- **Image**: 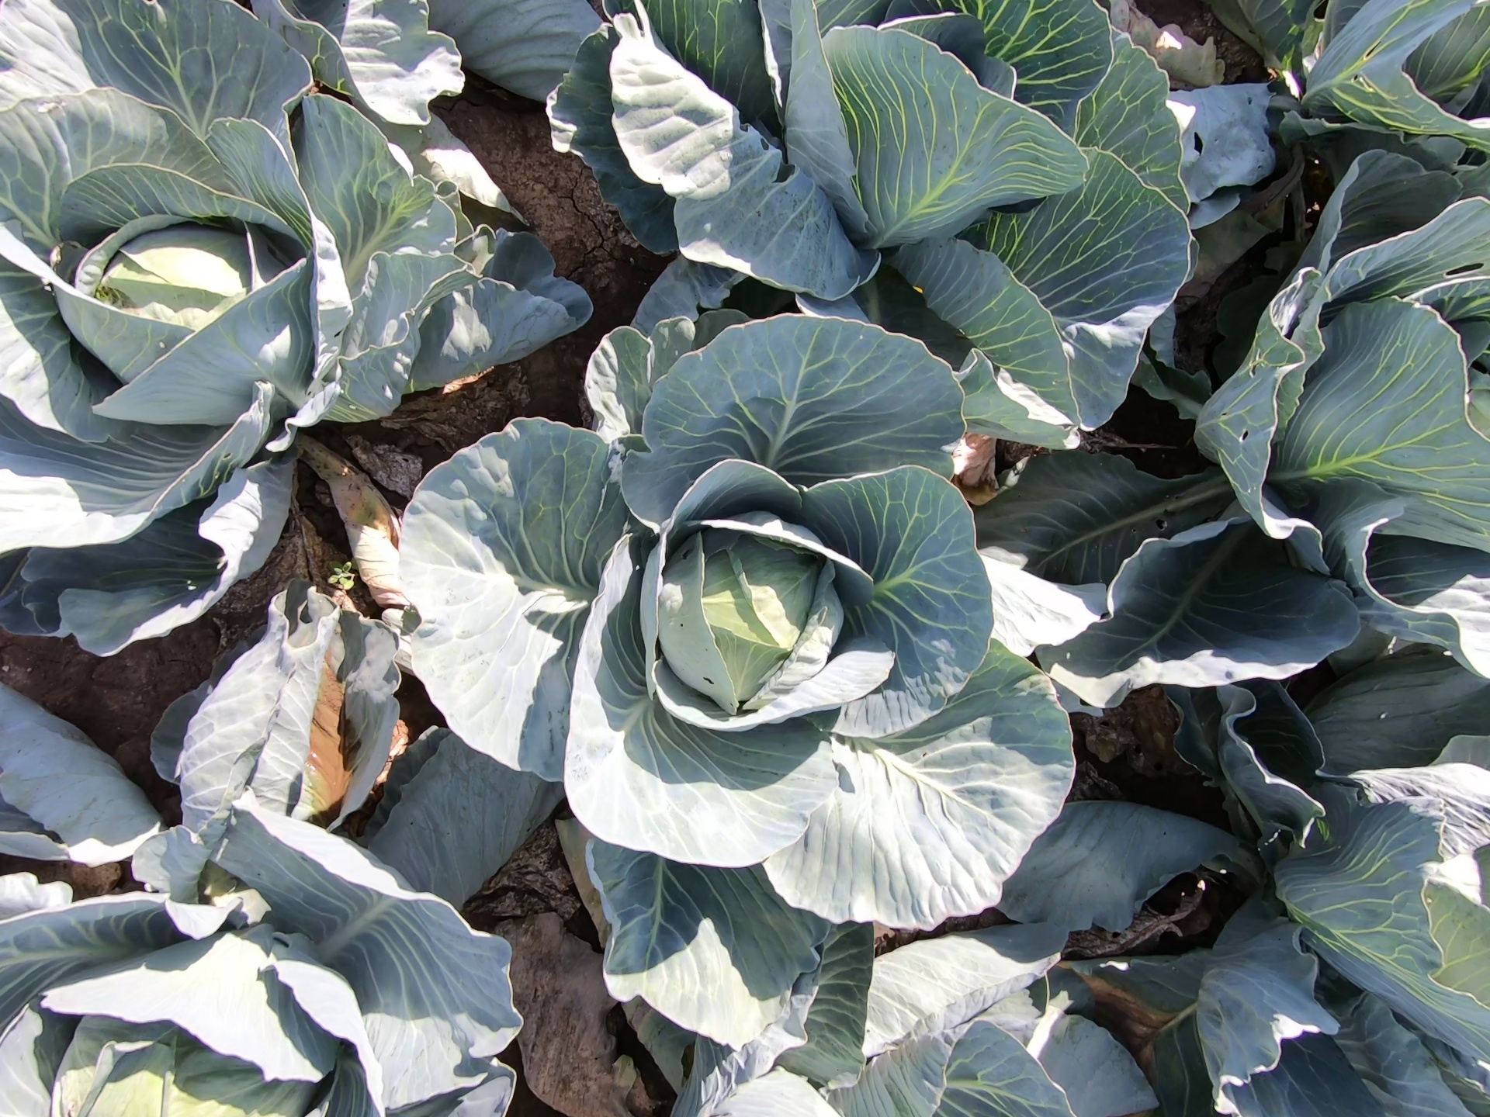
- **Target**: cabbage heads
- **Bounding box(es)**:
[1361,832,1485,994]
[1392,337,1487,483]
[54,933,323,1112]
[78,225,310,404]
[662,523,837,702]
